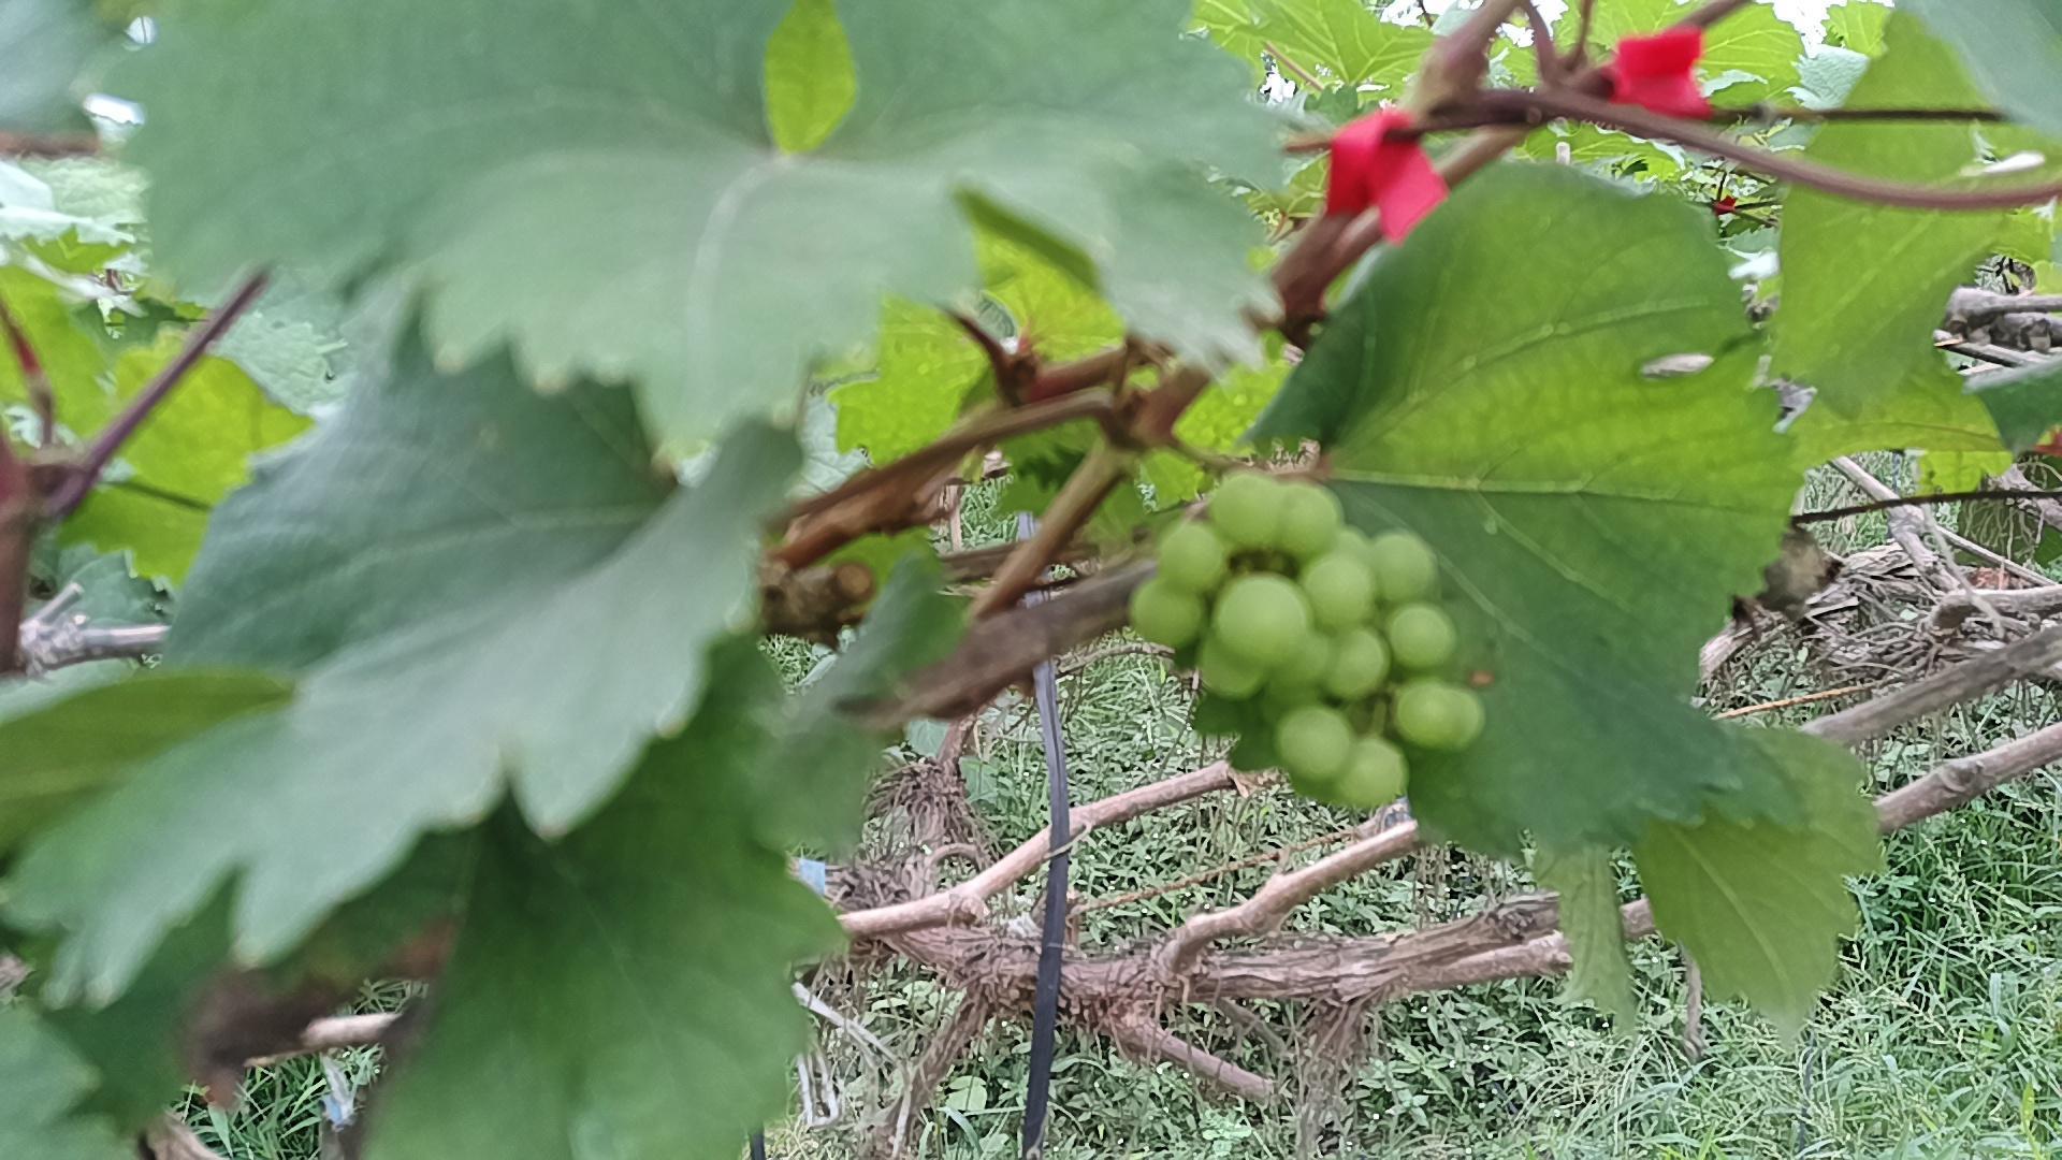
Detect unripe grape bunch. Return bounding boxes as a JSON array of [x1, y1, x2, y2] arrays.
[[1131, 470, 1482, 809]]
